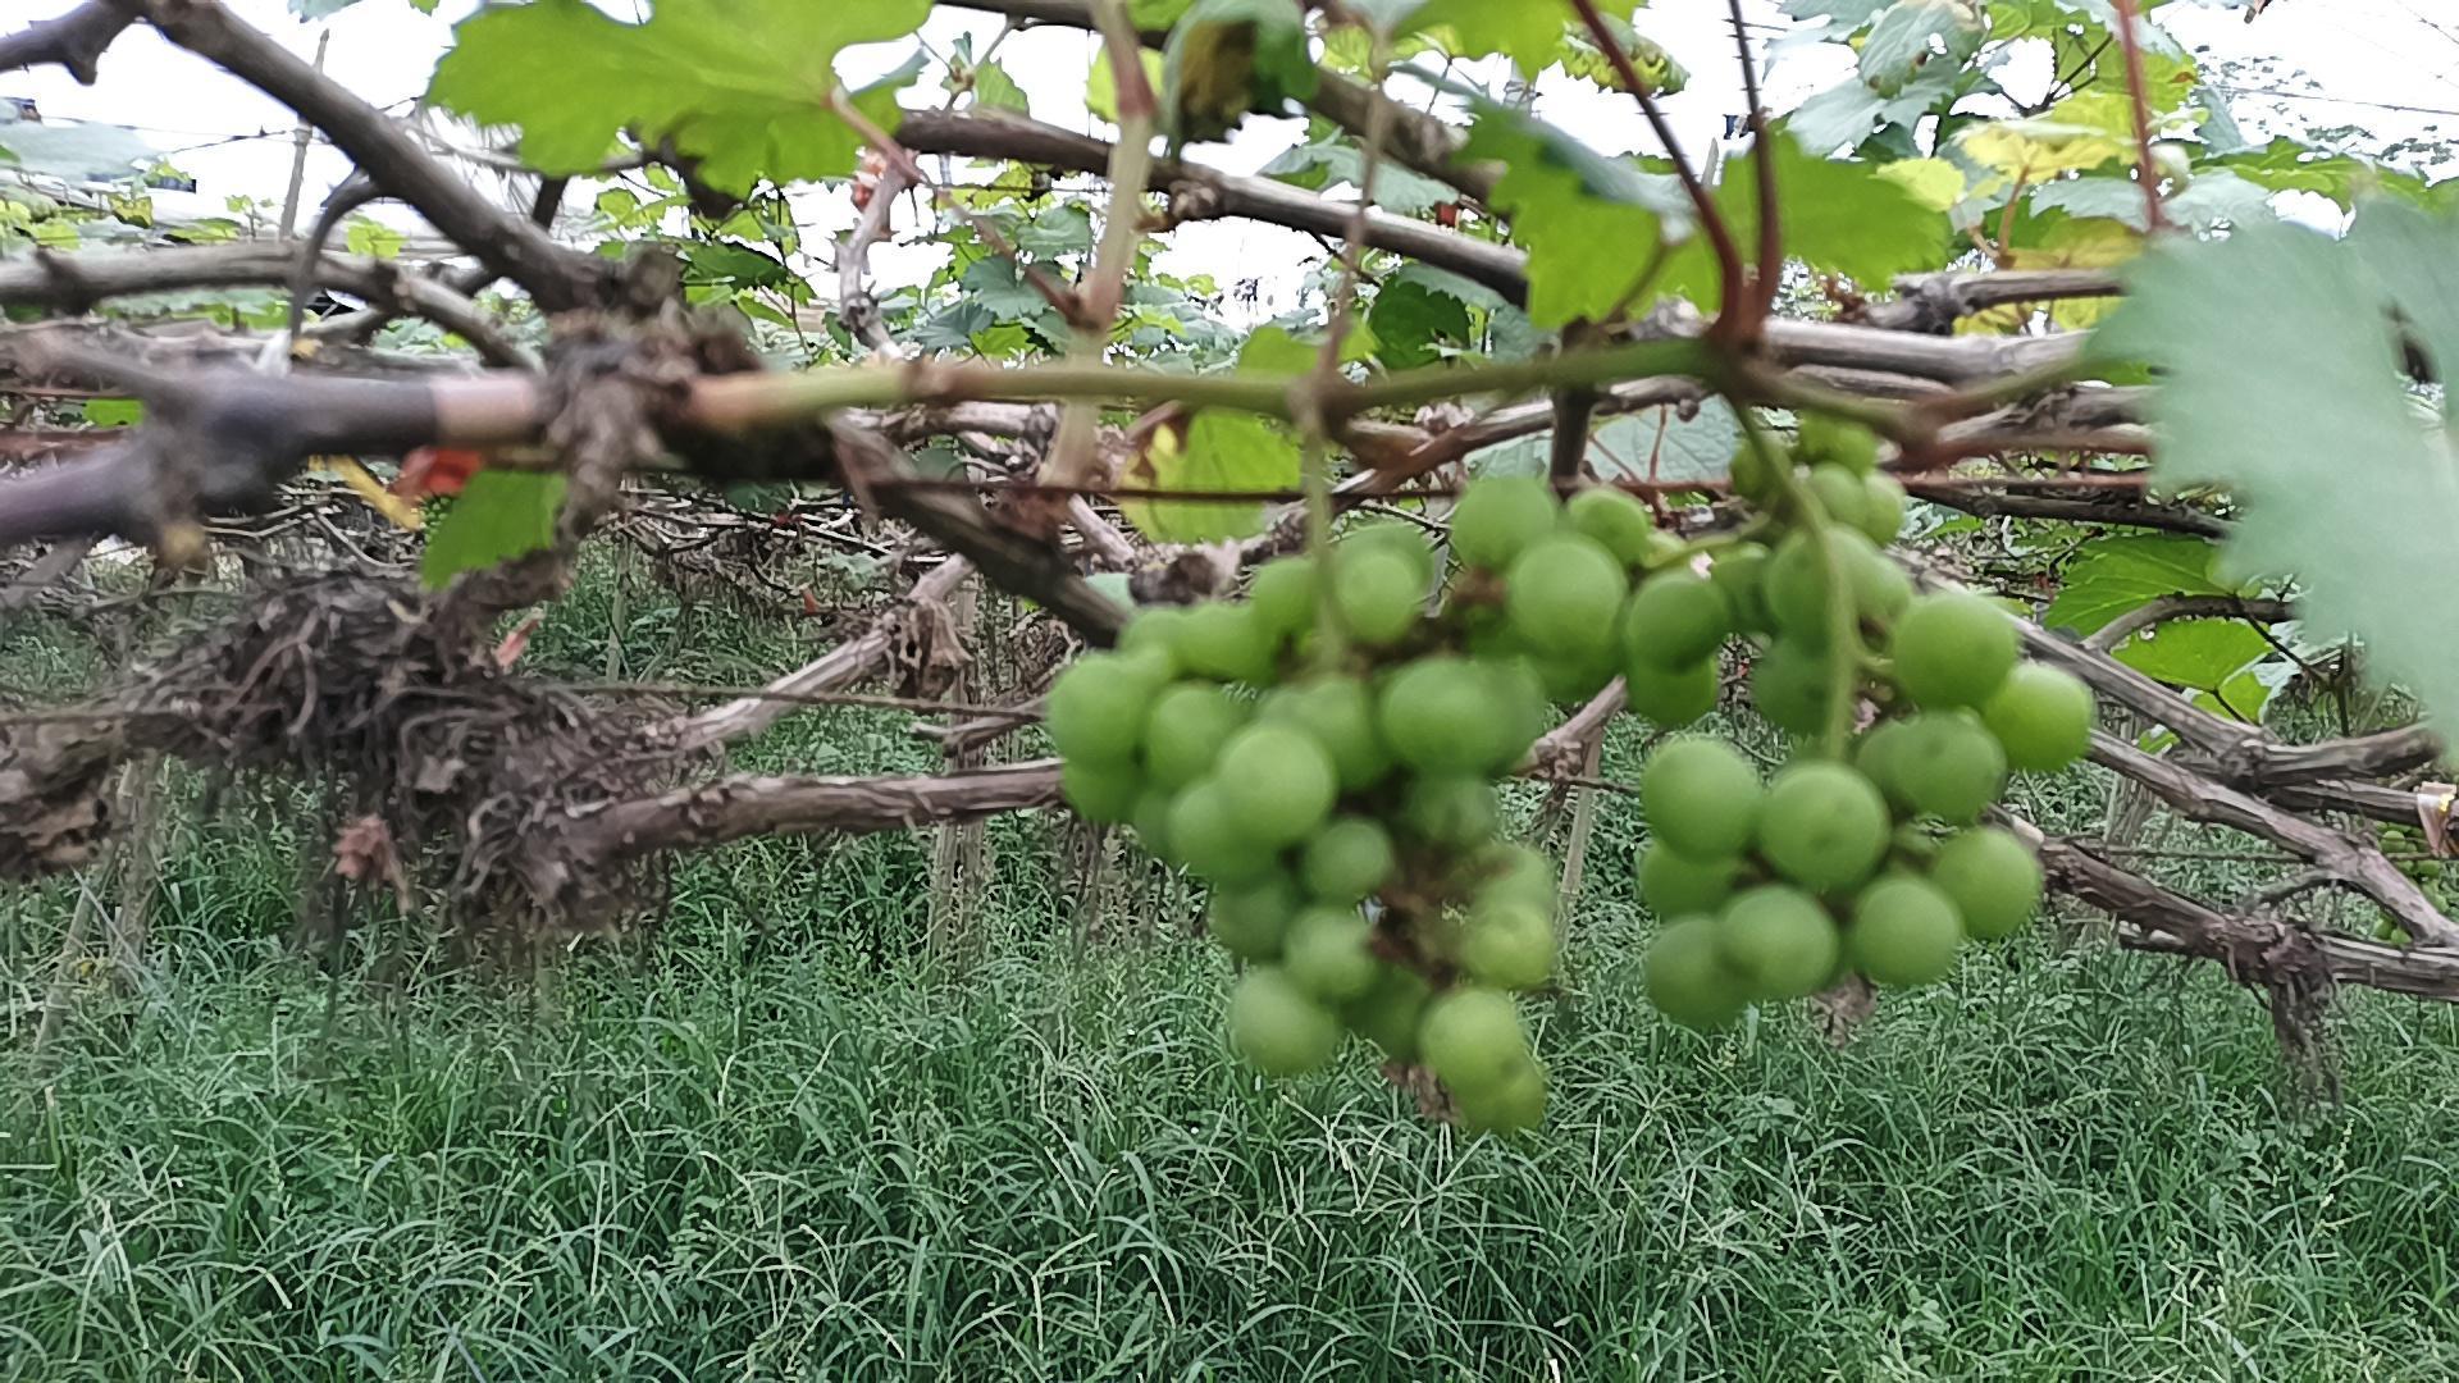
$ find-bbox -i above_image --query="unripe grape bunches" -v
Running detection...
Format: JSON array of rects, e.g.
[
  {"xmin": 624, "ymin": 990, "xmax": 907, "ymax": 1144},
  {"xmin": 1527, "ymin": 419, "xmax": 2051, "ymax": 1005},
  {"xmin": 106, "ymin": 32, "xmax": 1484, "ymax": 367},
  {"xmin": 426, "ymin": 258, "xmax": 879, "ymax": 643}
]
[
  {"xmin": 1629, "ymin": 414, "xmax": 2099, "ymax": 1028},
  {"xmin": 1050, "ymin": 478, "xmax": 1675, "ymax": 1131}
]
